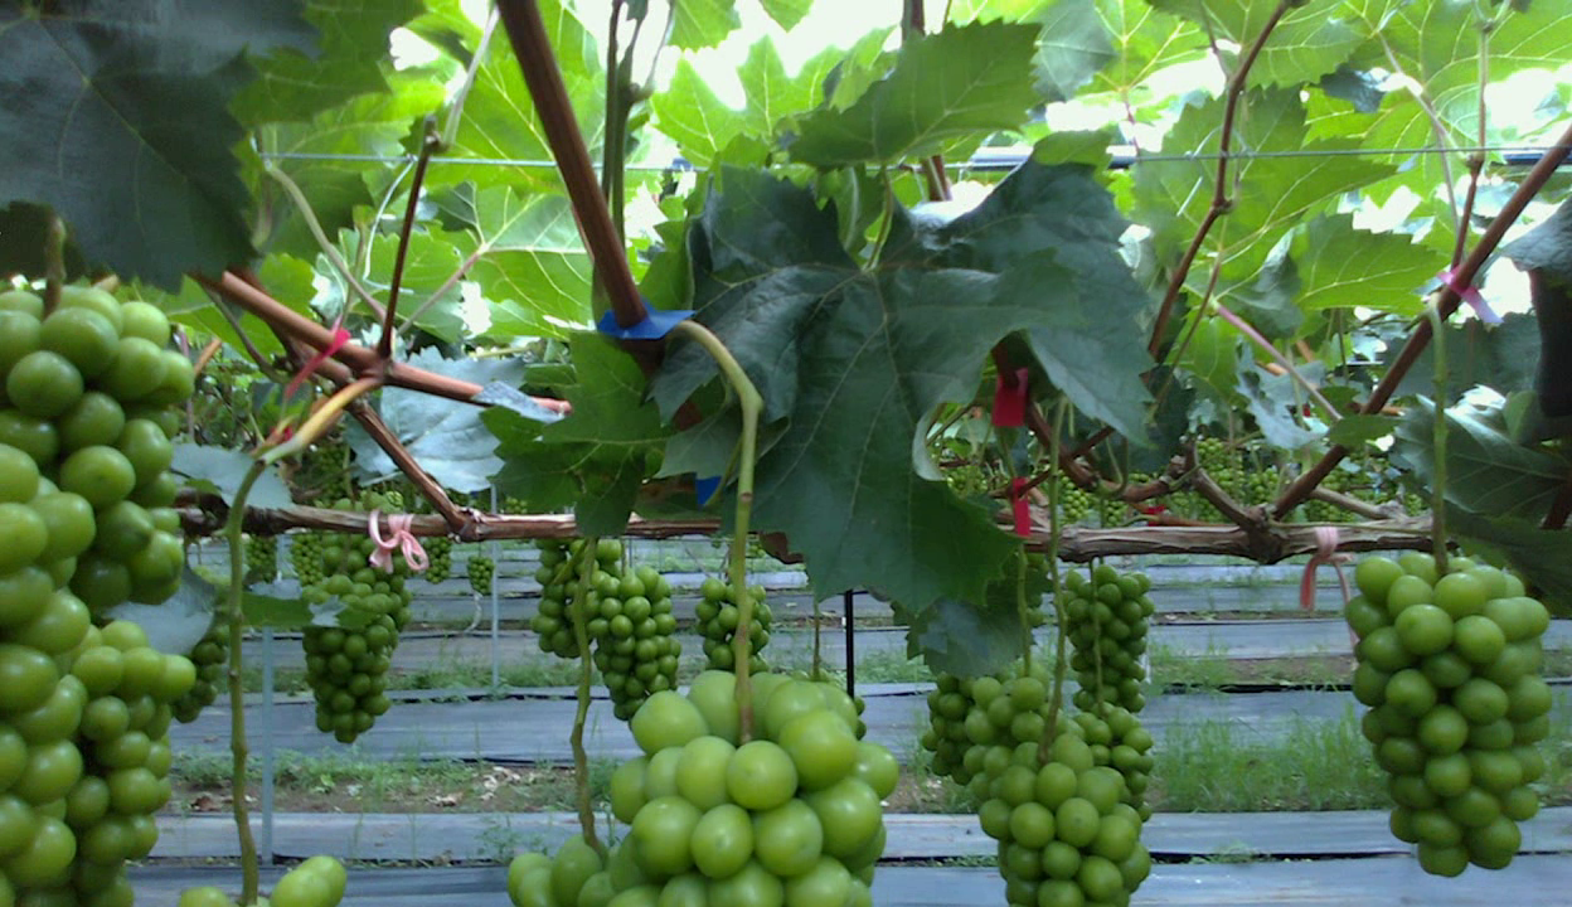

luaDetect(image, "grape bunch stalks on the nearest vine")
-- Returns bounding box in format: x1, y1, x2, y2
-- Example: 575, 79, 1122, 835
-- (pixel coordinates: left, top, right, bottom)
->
1430, 292, 1451, 578
1048, 397, 1069, 708
571, 542, 610, 870
42, 217, 64, 319
671, 317, 757, 747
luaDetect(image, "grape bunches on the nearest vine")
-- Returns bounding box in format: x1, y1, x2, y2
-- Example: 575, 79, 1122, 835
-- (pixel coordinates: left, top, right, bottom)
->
964, 658, 1088, 801
175, 854, 348, 906
979, 729, 1151, 906
1, 285, 193, 605
607, 670, 898, 906
1345, 552, 1553, 877
1, 440, 94, 906
508, 833, 618, 906
11, 620, 196, 904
